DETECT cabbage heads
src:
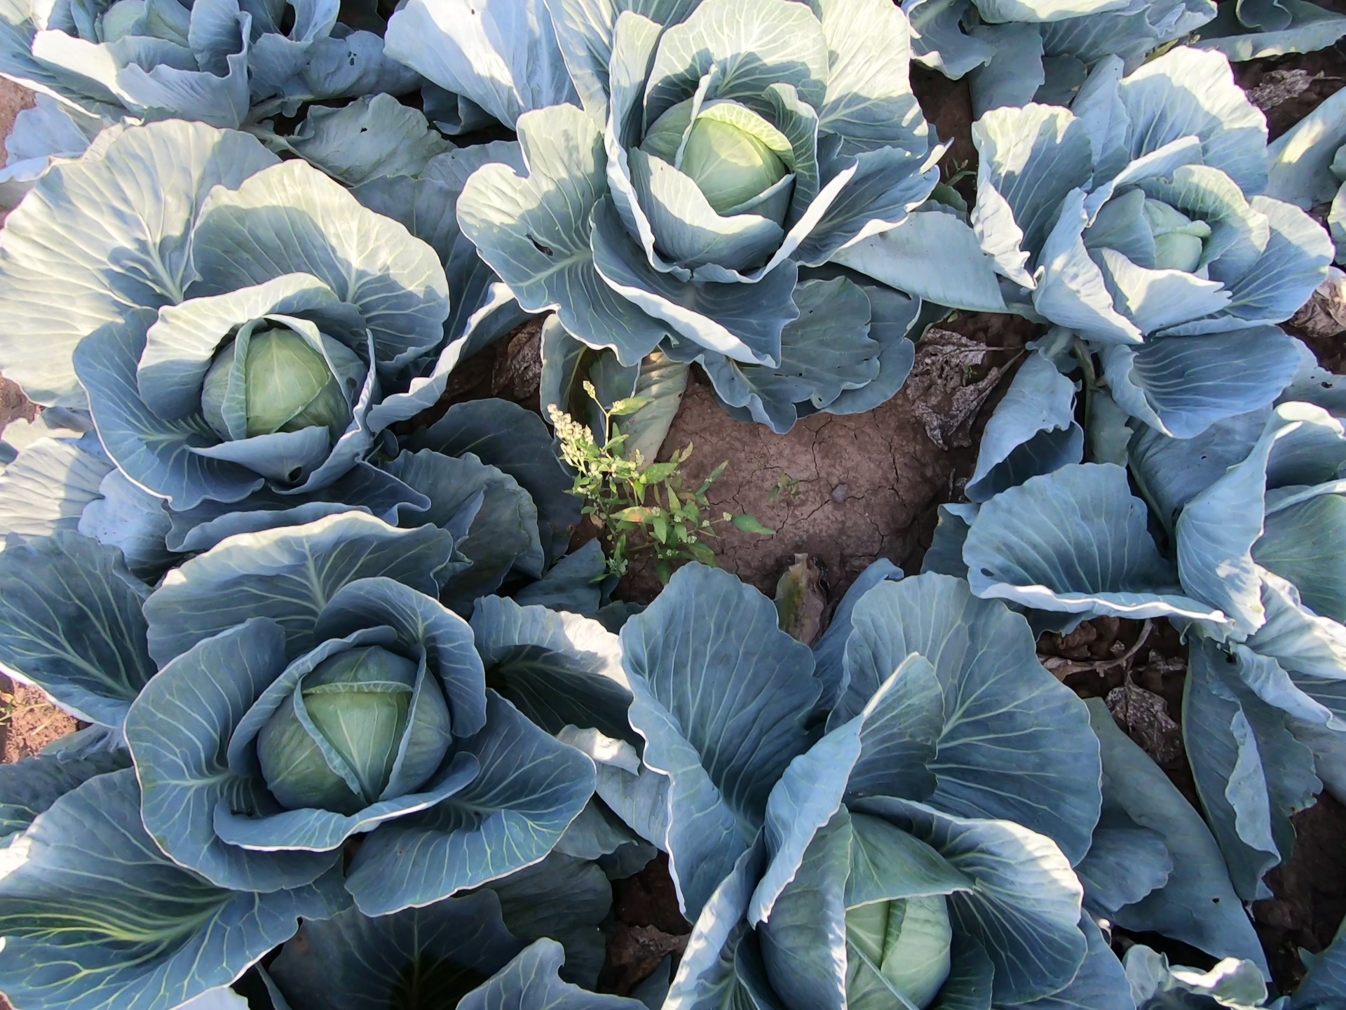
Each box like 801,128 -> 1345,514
254,651 -> 450,815
200,328 -> 370,462
1081,194 -> 1202,285
632,96 -> 787,265
1214,489 -> 1344,629
761,819 -> 954,1009
97,0 -> 197,79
